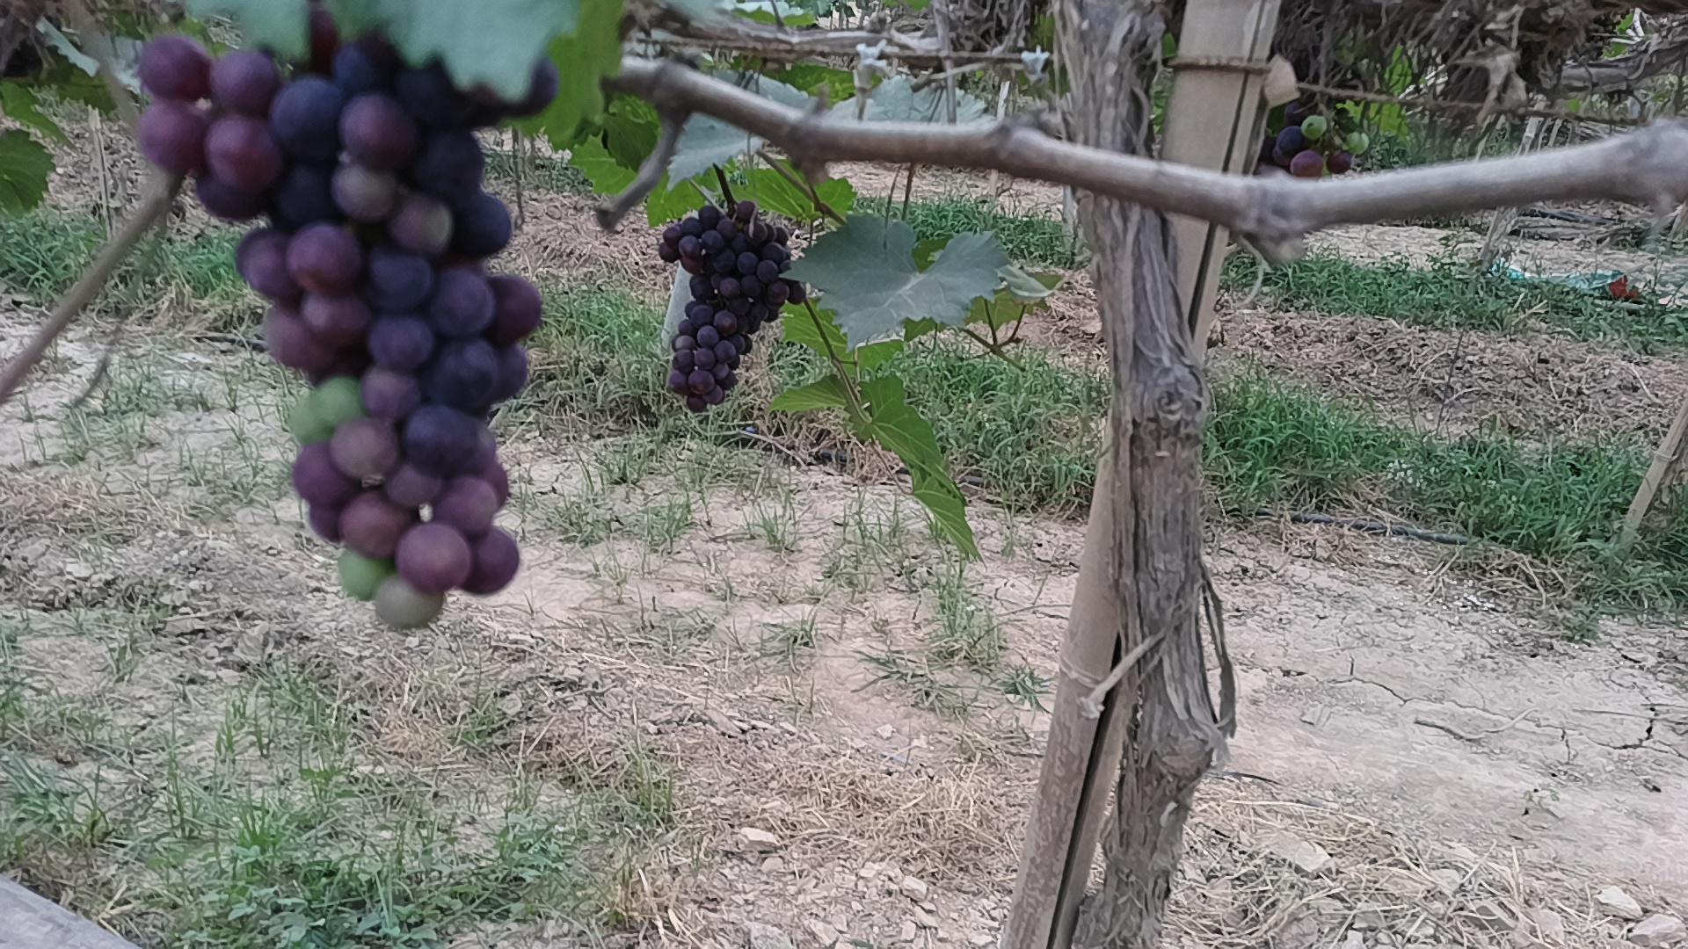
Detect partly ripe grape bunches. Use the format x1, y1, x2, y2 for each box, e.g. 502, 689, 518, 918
140, 6, 557, 627
1258, 99, 1369, 181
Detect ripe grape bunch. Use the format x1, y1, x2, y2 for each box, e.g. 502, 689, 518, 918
658, 200, 804, 411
